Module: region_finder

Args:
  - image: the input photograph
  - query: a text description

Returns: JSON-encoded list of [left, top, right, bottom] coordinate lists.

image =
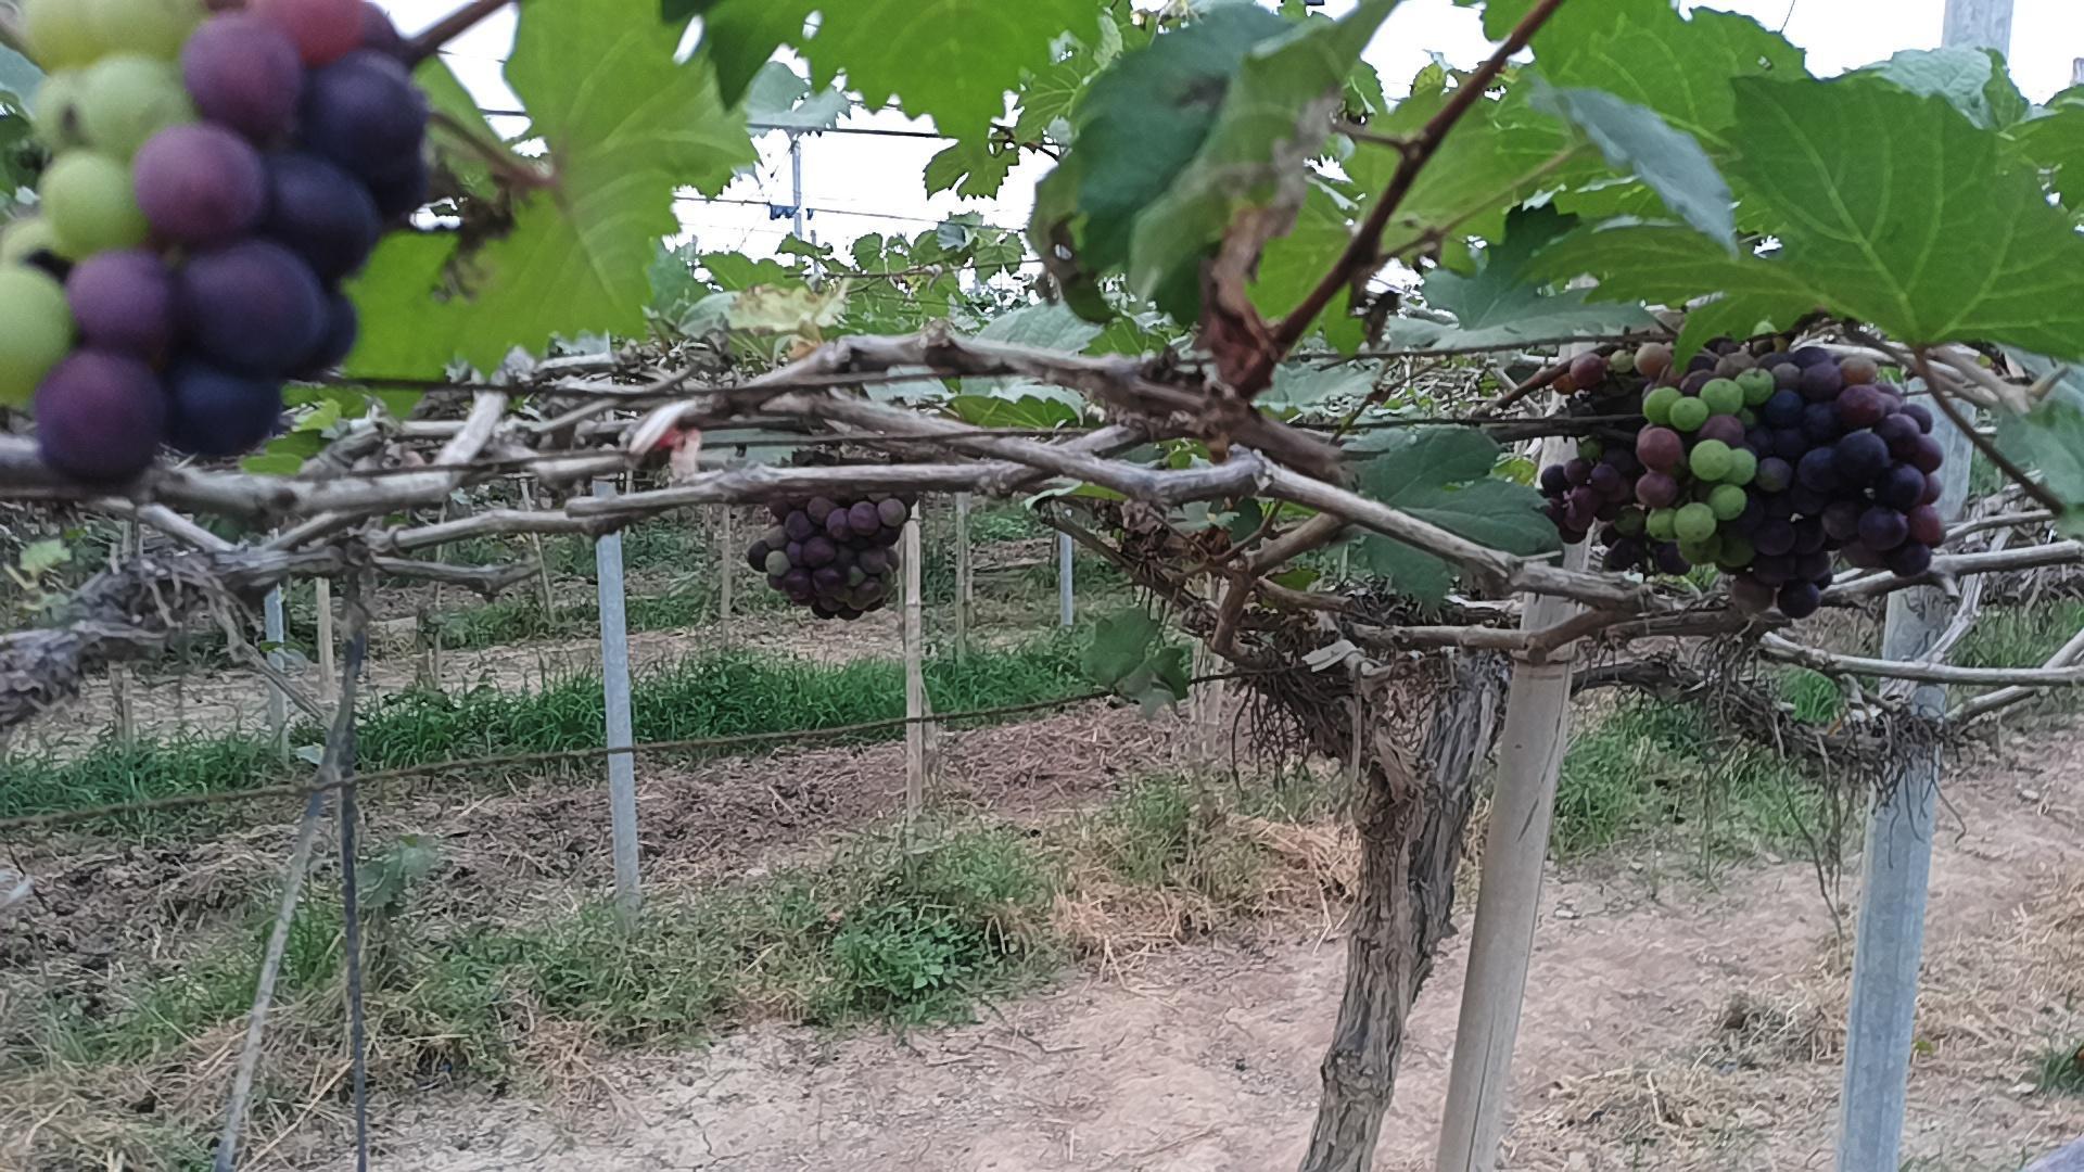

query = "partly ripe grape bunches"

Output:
[[1537, 337, 1943, 617], [0, 0, 429, 479], [748, 492, 919, 620]]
